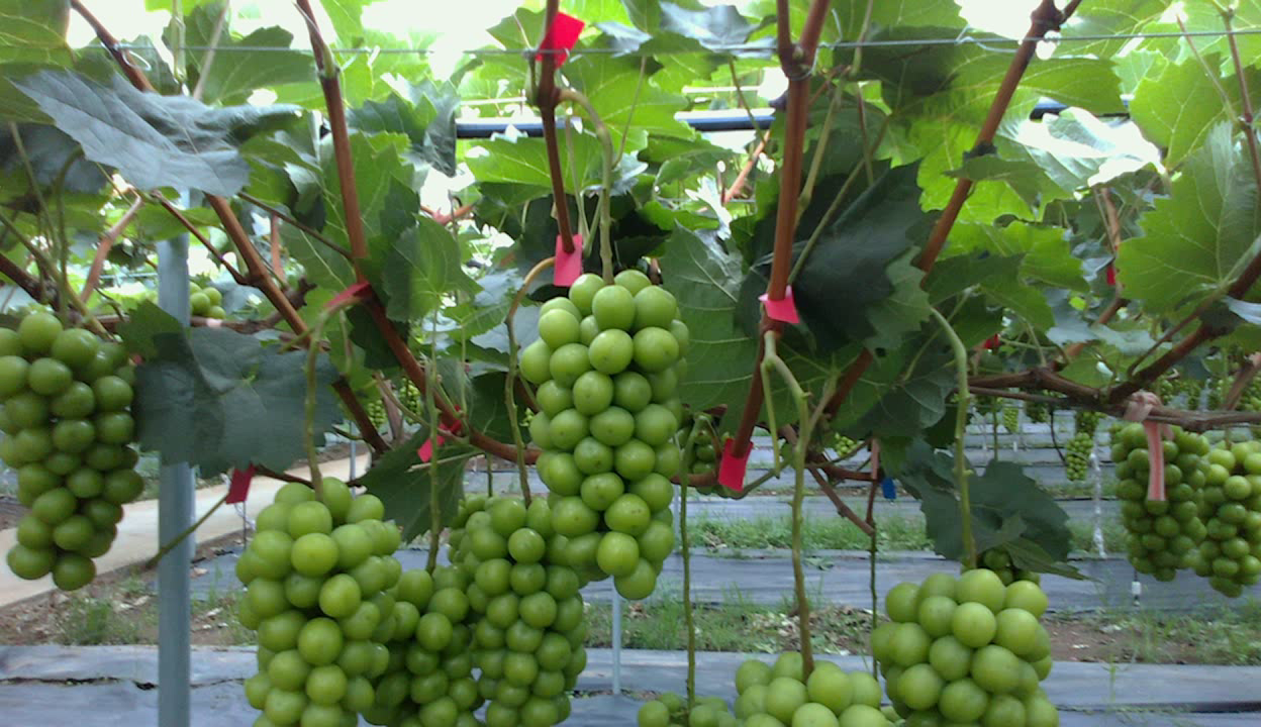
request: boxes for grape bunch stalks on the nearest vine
[423,363,441,576]
[763,331,815,683]
[504,255,555,507]
[931,307,977,569]
[51,147,81,329]
[303,296,363,504]
[678,416,723,713]
[560,88,615,285]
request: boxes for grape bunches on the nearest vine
[357,561,486,726]
[870,568,1059,726]
[234,477,402,726]
[639,691,739,726]
[454,496,588,726]
[734,650,890,726]
[0,312,144,591]
[518,270,691,600]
